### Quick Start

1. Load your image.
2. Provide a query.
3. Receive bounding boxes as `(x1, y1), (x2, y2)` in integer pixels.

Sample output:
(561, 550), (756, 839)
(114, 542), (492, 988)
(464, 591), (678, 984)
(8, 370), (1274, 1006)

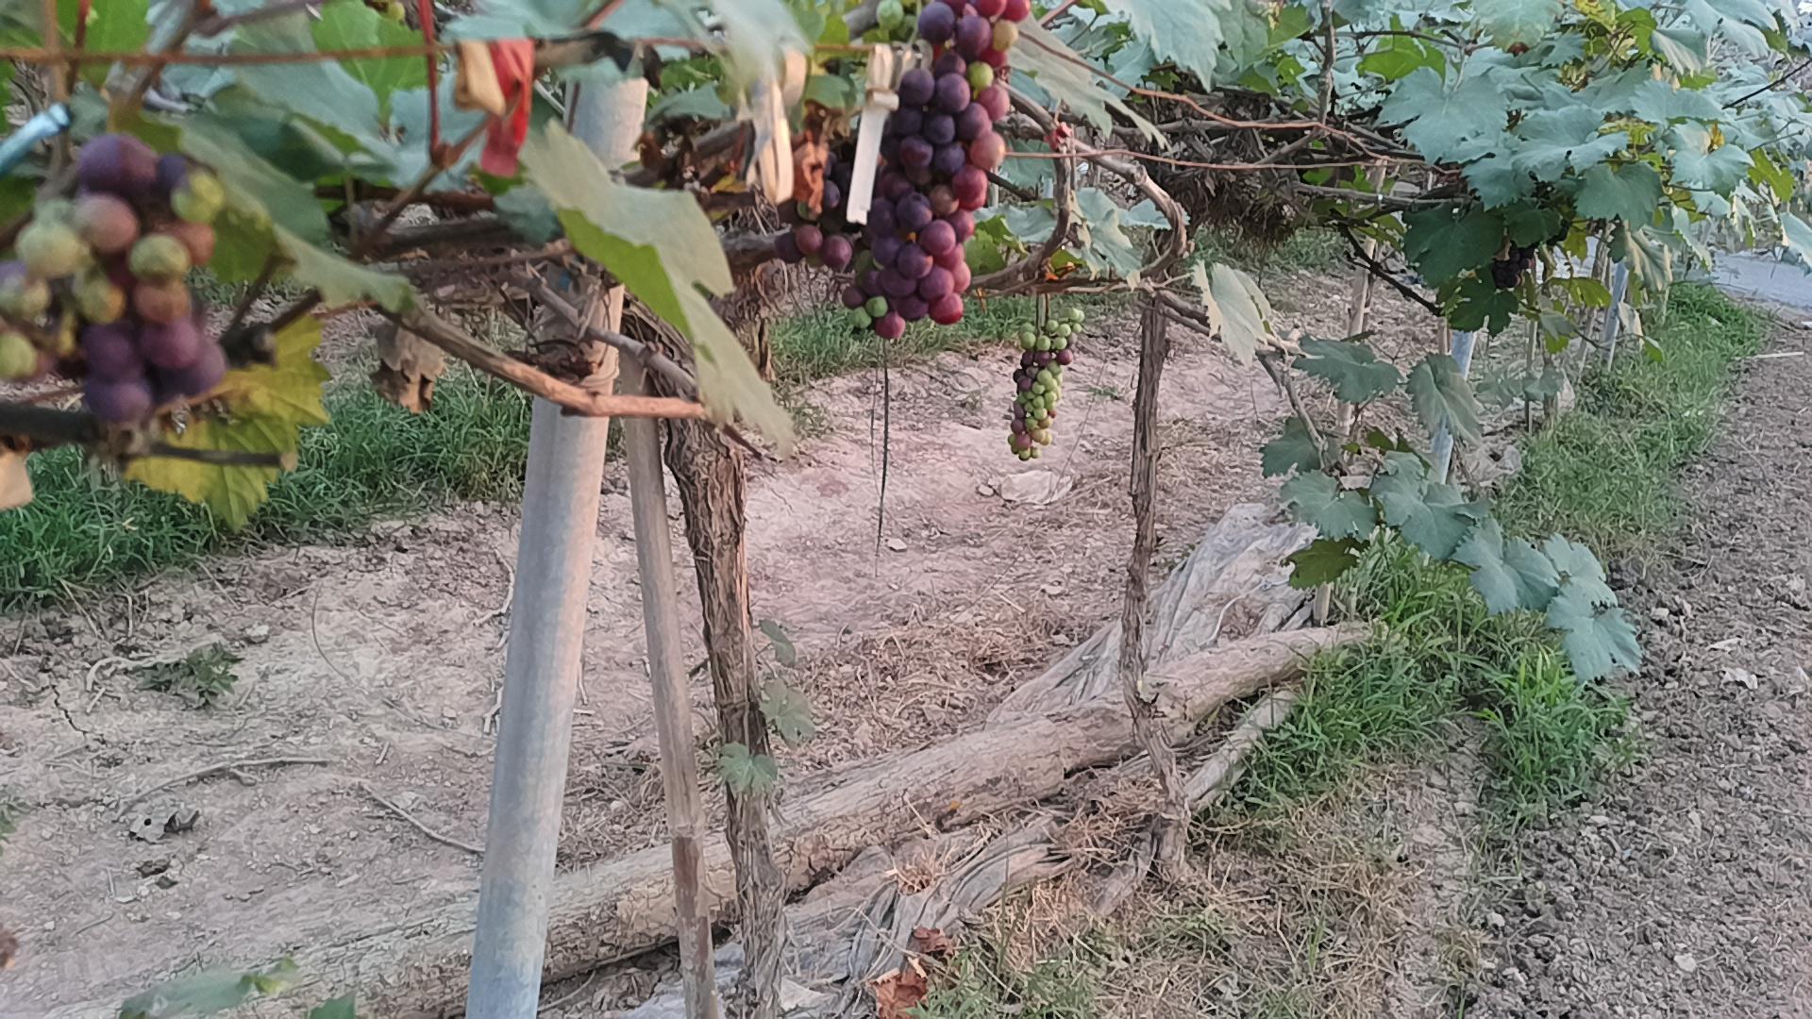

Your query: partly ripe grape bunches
(1007, 295), (1082, 459)
(0, 132), (239, 436)
(777, 0), (1030, 339)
